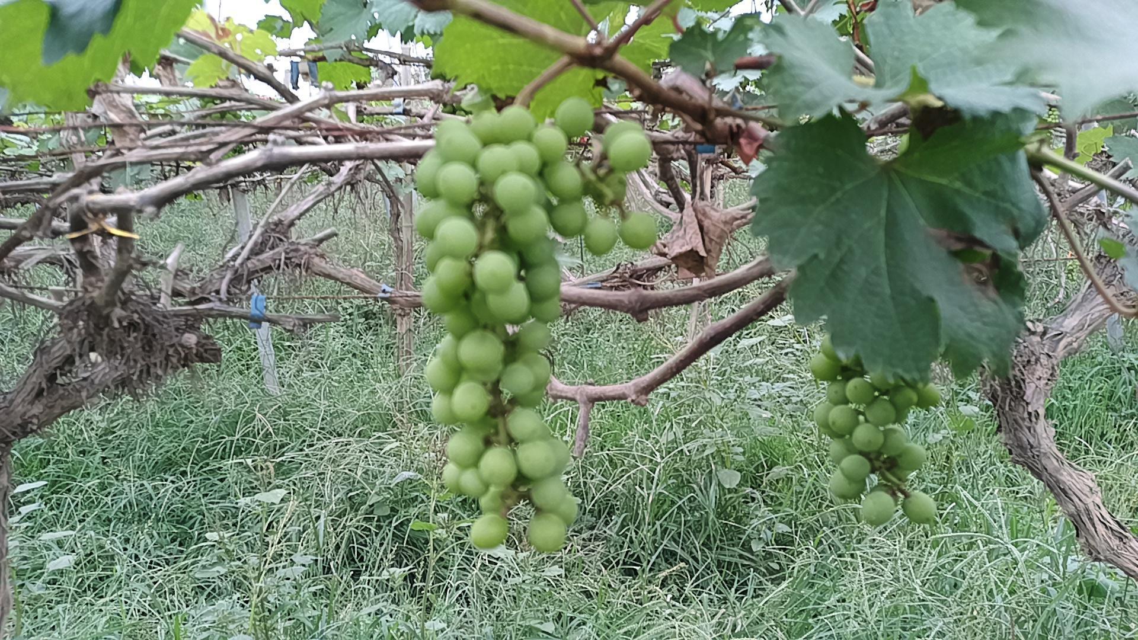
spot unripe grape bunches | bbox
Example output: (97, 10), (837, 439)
(415, 98), (659, 552)
(810, 339), (941, 524)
